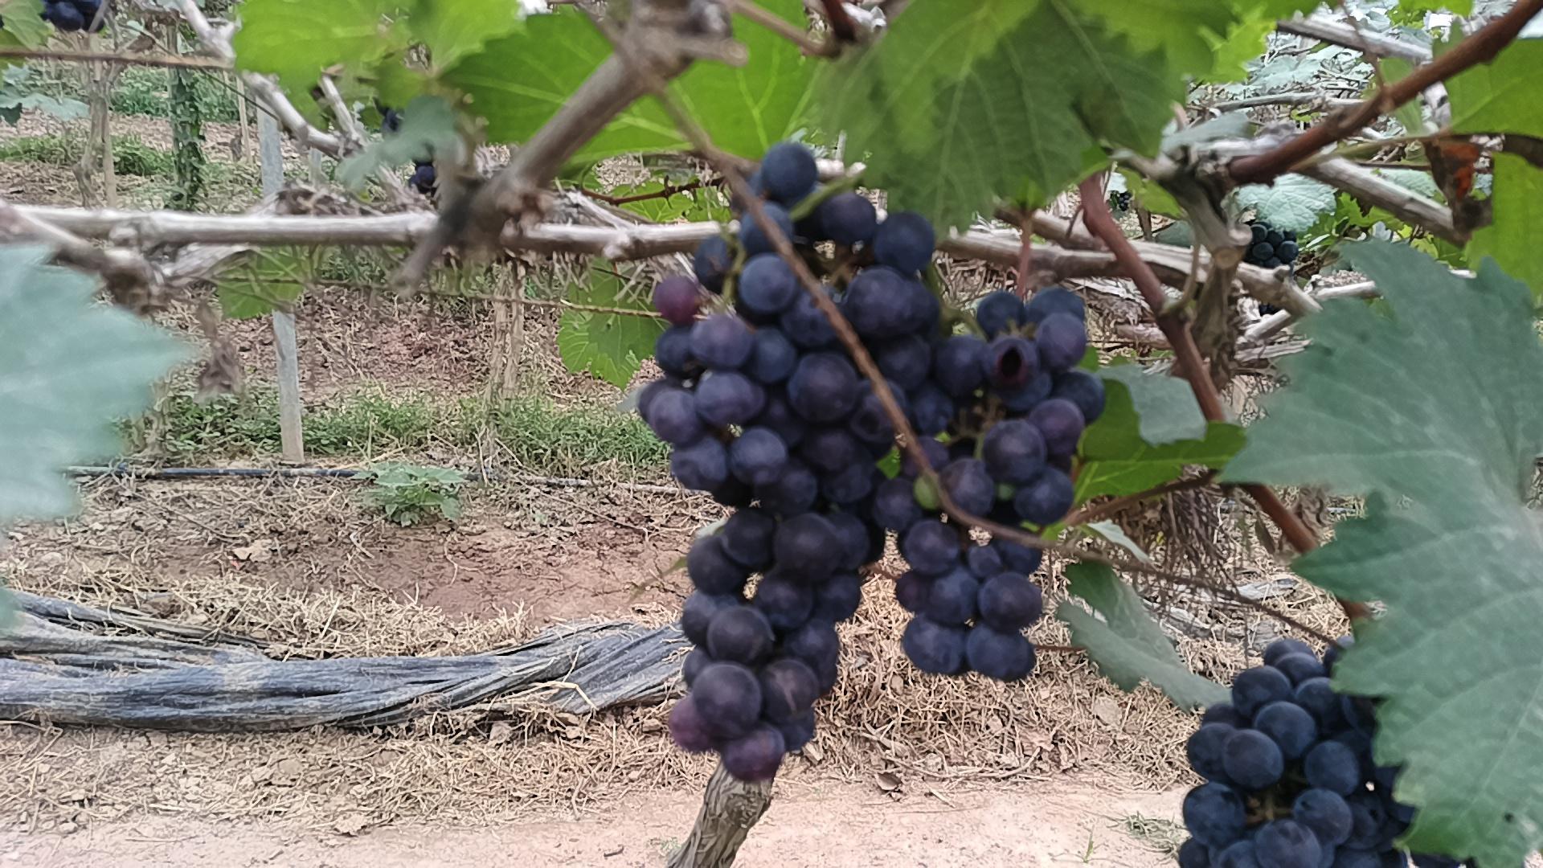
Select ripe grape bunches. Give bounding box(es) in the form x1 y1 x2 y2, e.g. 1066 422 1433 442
41 0 114 32
1178 637 1417 867
375 100 439 197
636 140 943 781
1242 215 1300 273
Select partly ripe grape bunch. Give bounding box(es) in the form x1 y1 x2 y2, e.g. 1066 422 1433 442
871 288 1104 681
